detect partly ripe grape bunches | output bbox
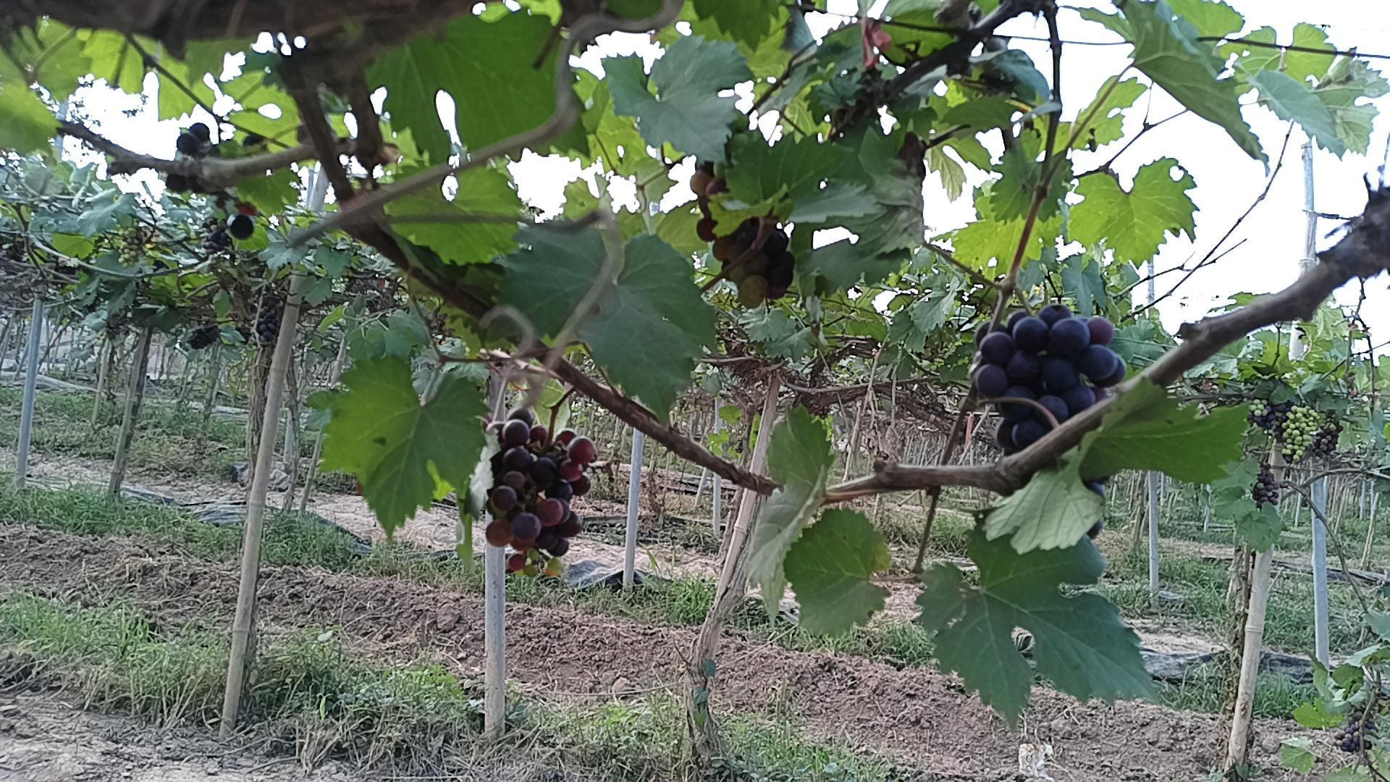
[1269,400,1295,445]
[1281,405,1321,464]
[690,172,795,309]
[1335,680,1389,753]
[1311,409,1344,459]
[1239,390,1276,429]
[486,409,595,575]
[1252,463,1281,508]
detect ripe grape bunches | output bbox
[186,325,223,349]
[258,280,287,342]
[971,305,1126,540]
[165,122,269,240]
